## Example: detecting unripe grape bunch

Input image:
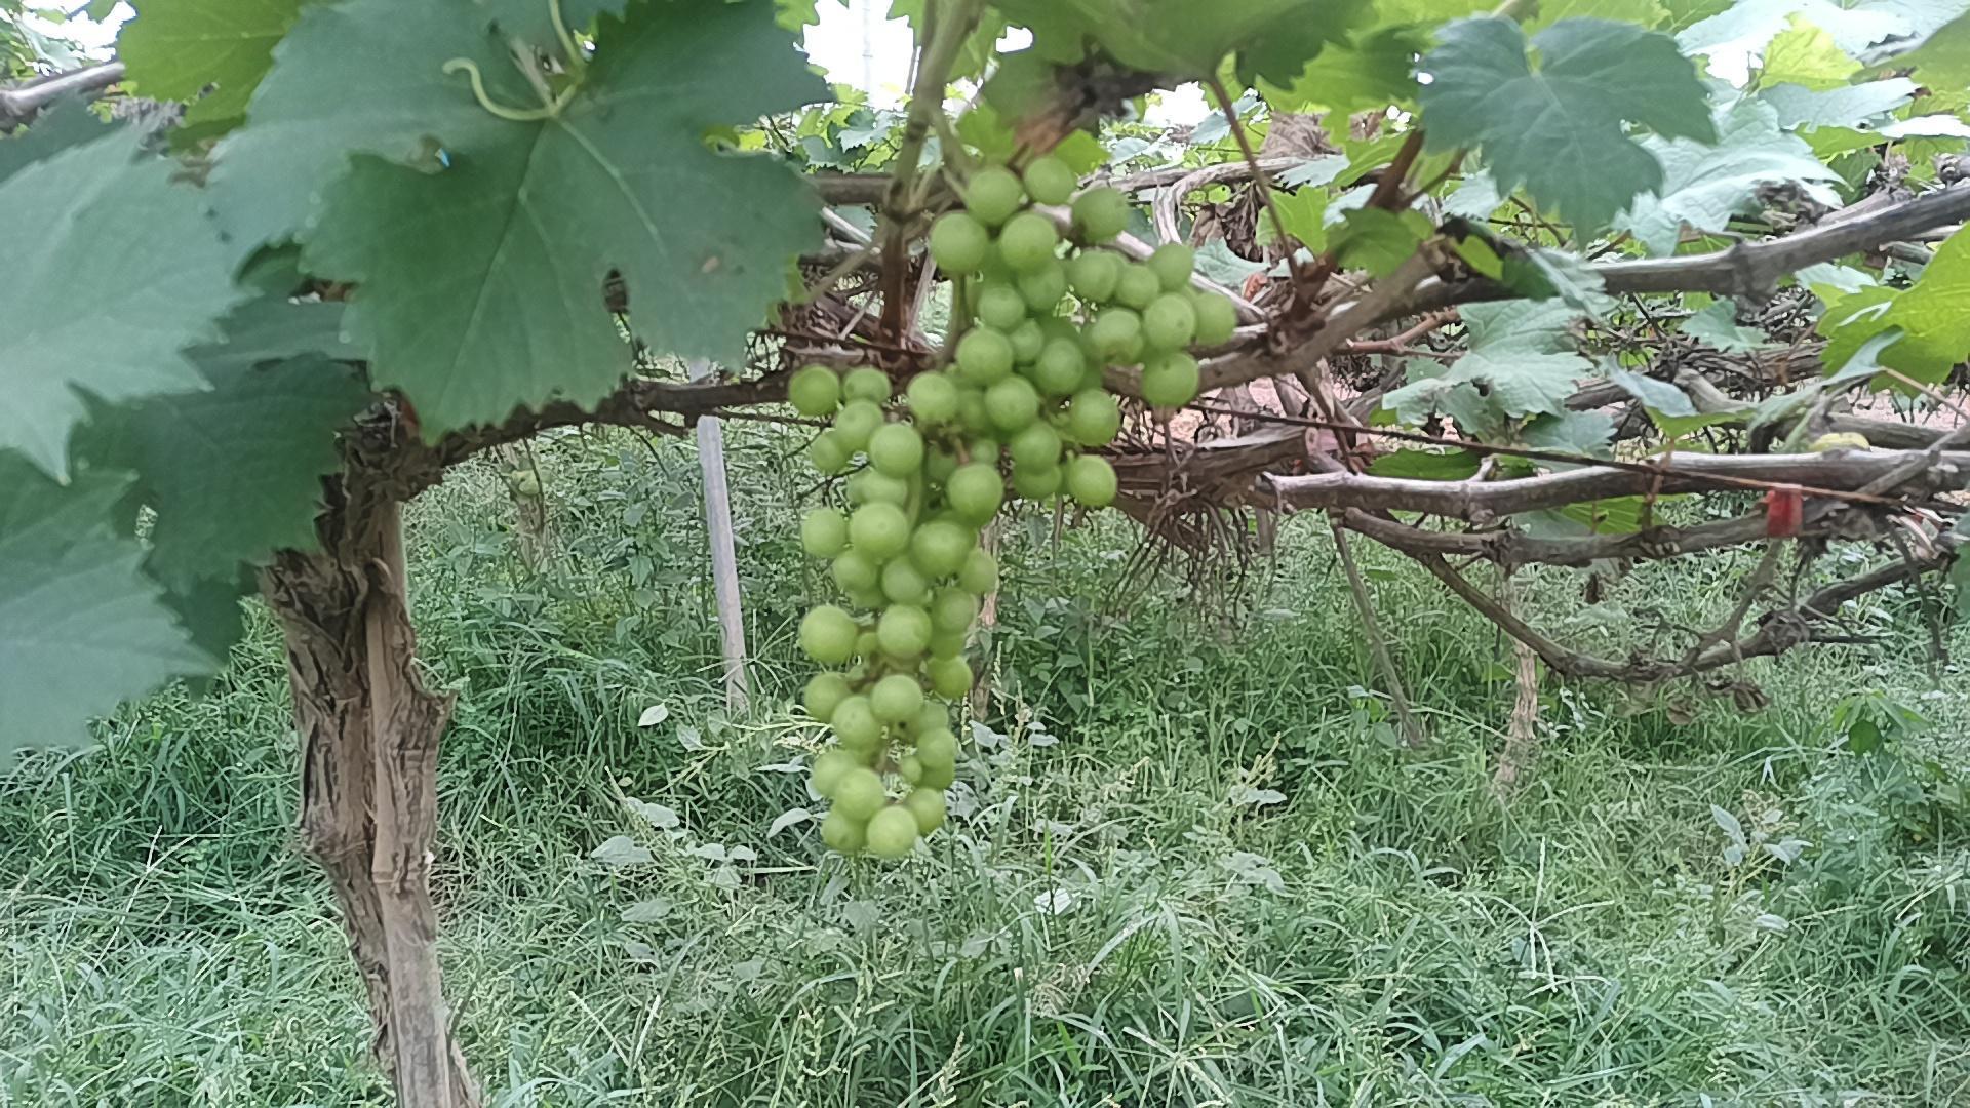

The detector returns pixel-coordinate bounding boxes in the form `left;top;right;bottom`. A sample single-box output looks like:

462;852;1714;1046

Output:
789;164;1234;858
